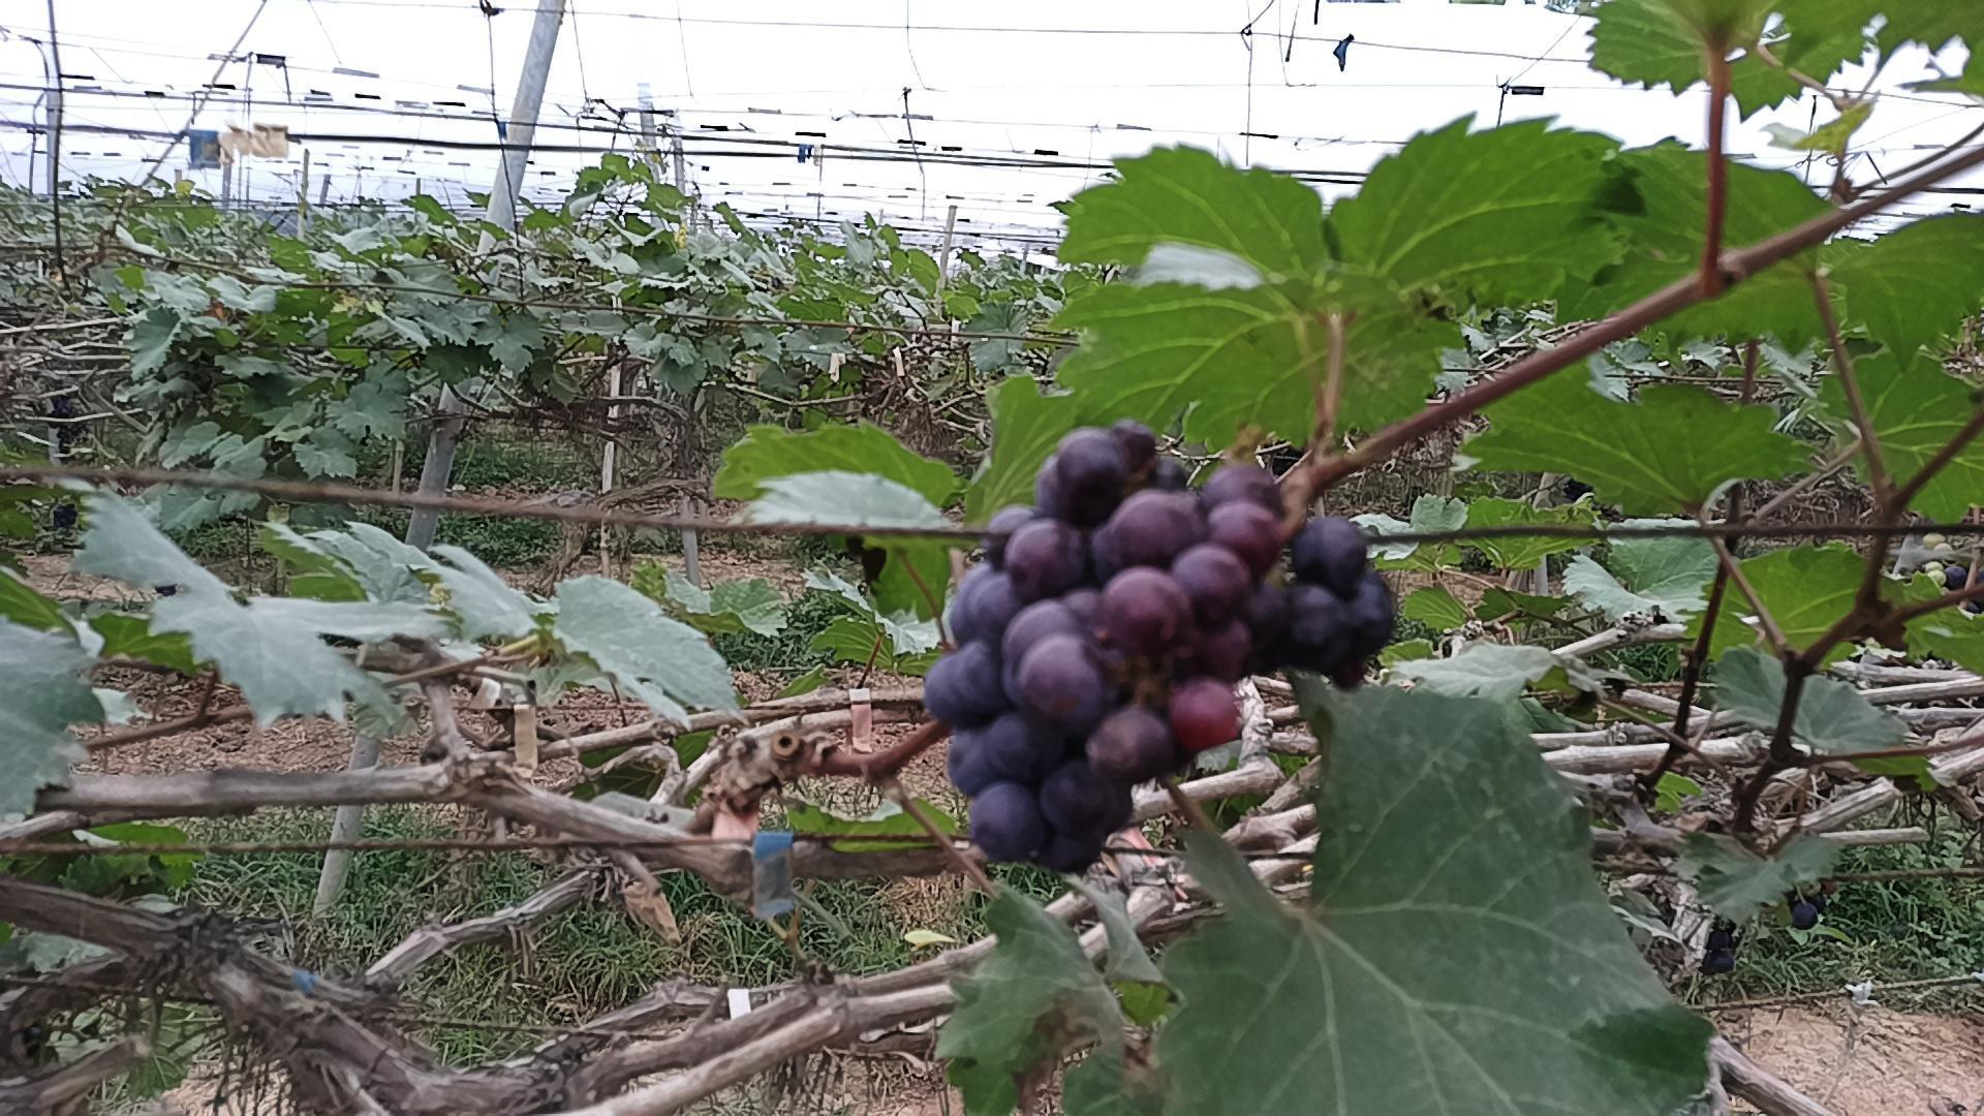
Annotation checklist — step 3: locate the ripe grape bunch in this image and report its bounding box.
[924,420,1394,871]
